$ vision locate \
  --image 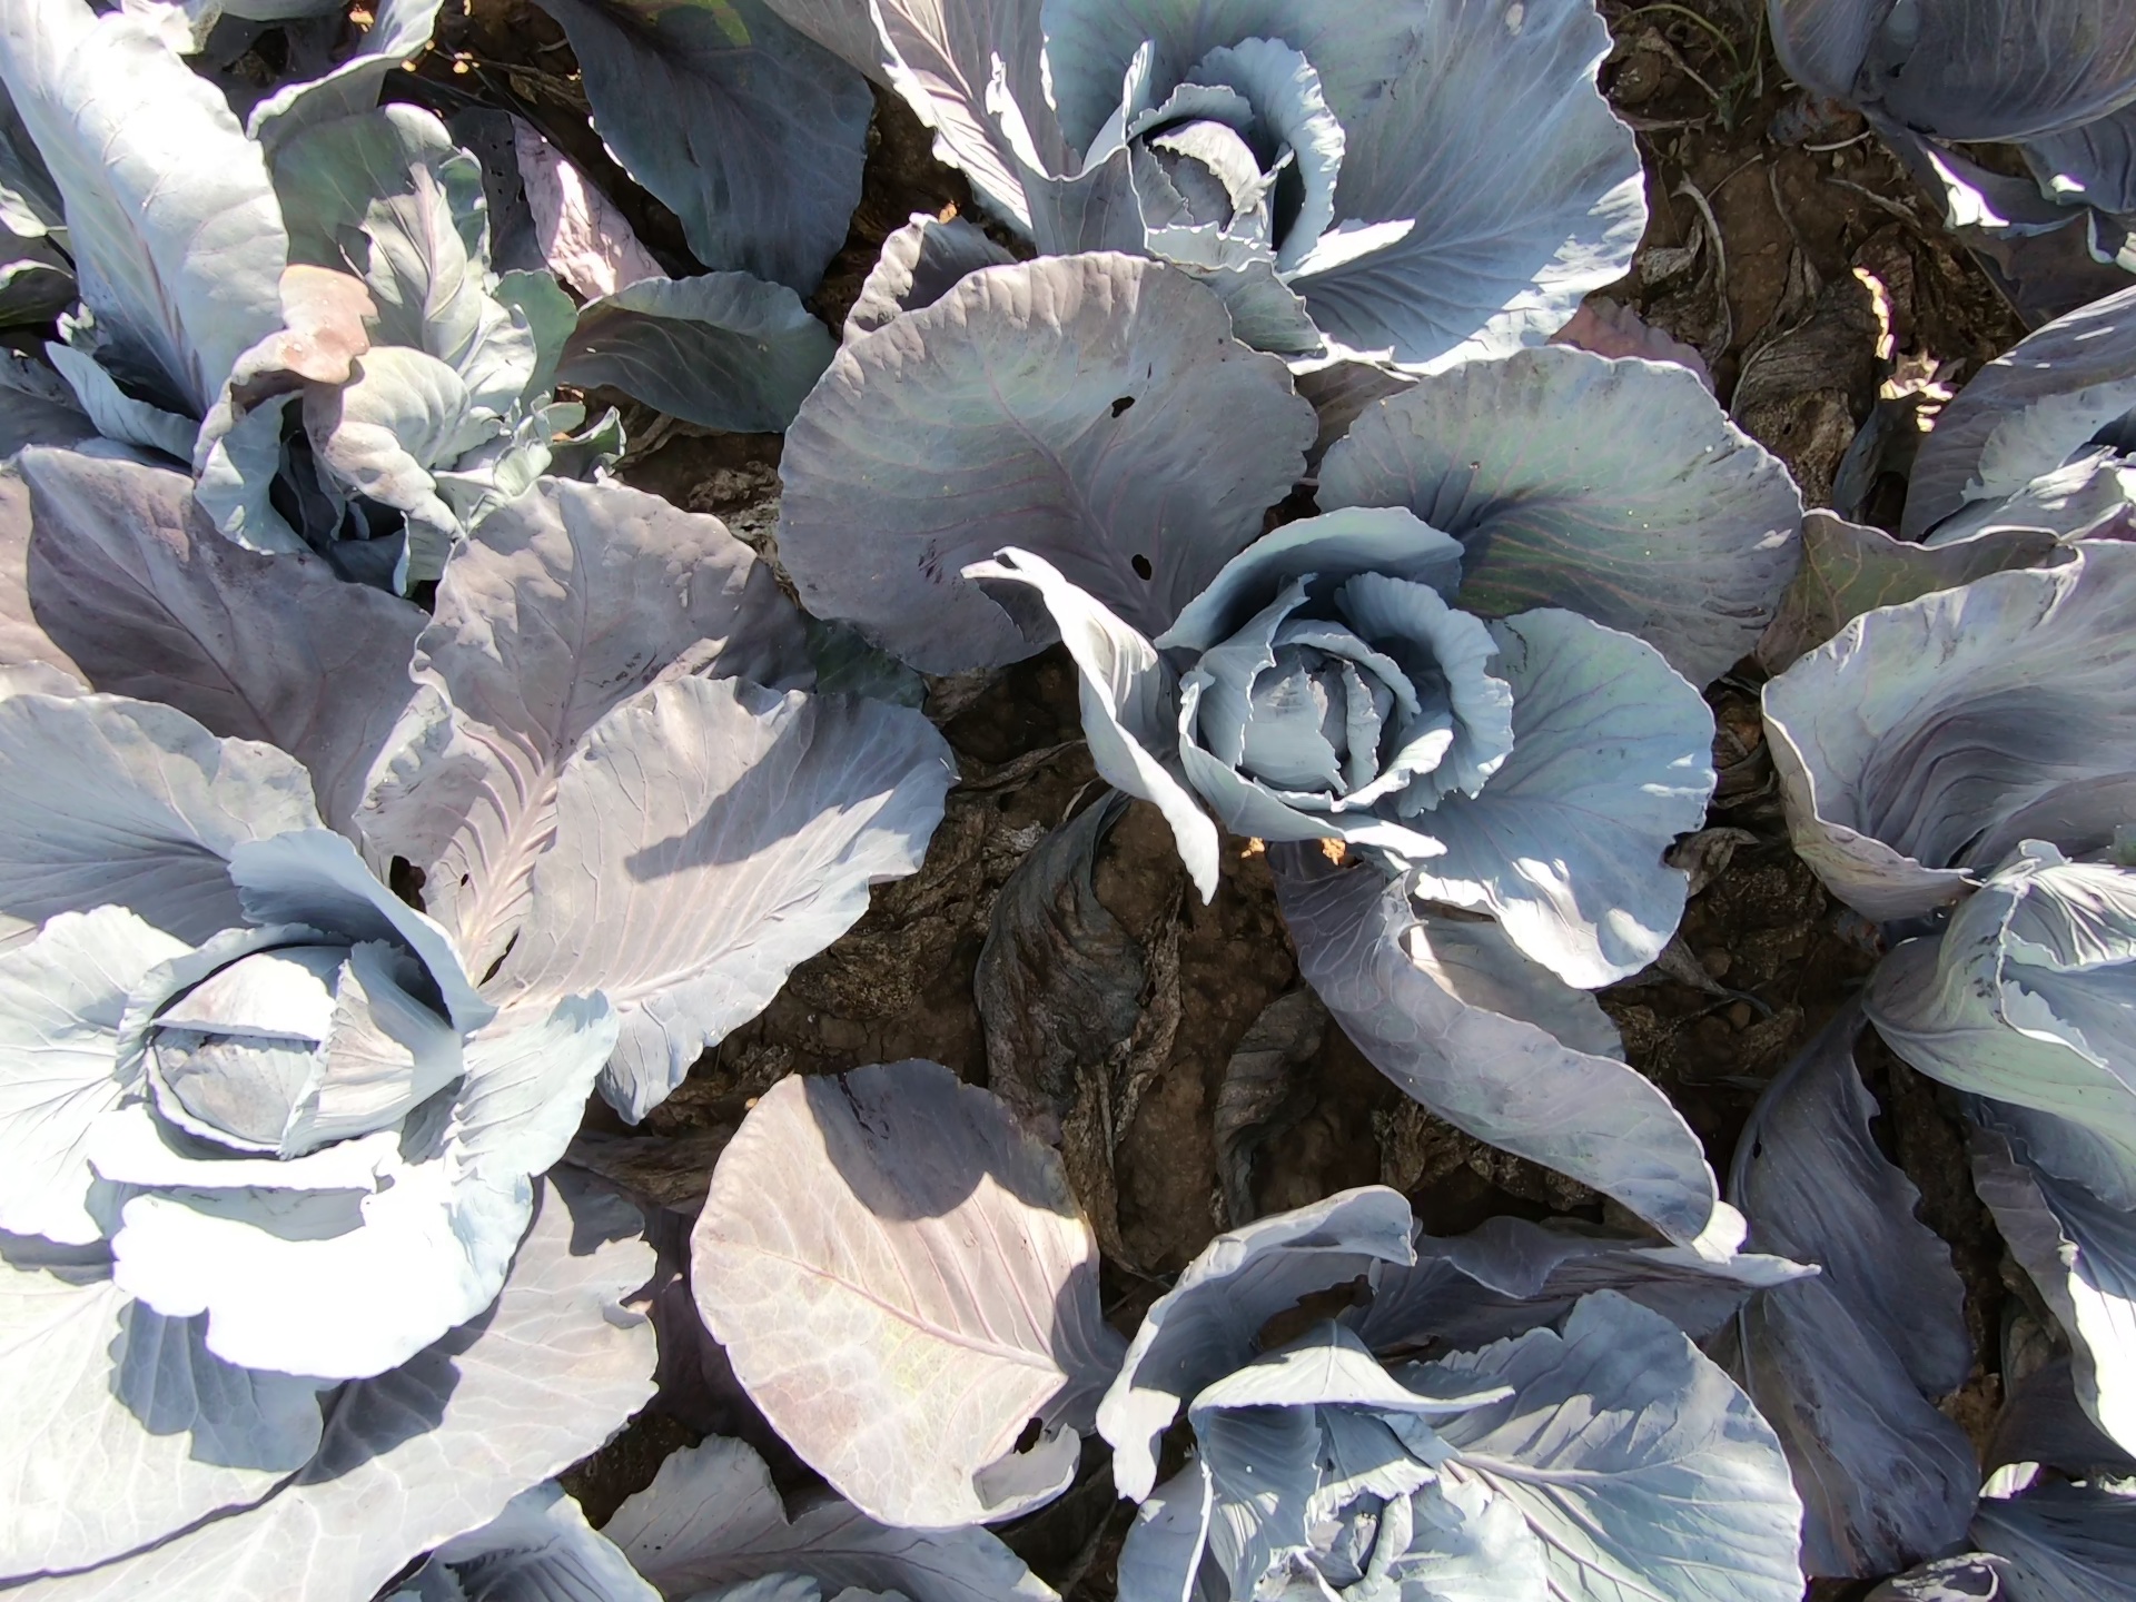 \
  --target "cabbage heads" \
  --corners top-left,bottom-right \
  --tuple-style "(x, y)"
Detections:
(1258, 1408), (1405, 1591)
(148, 950), (433, 1151)
(1128, 122), (1268, 287)
(1227, 632), (1391, 782)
